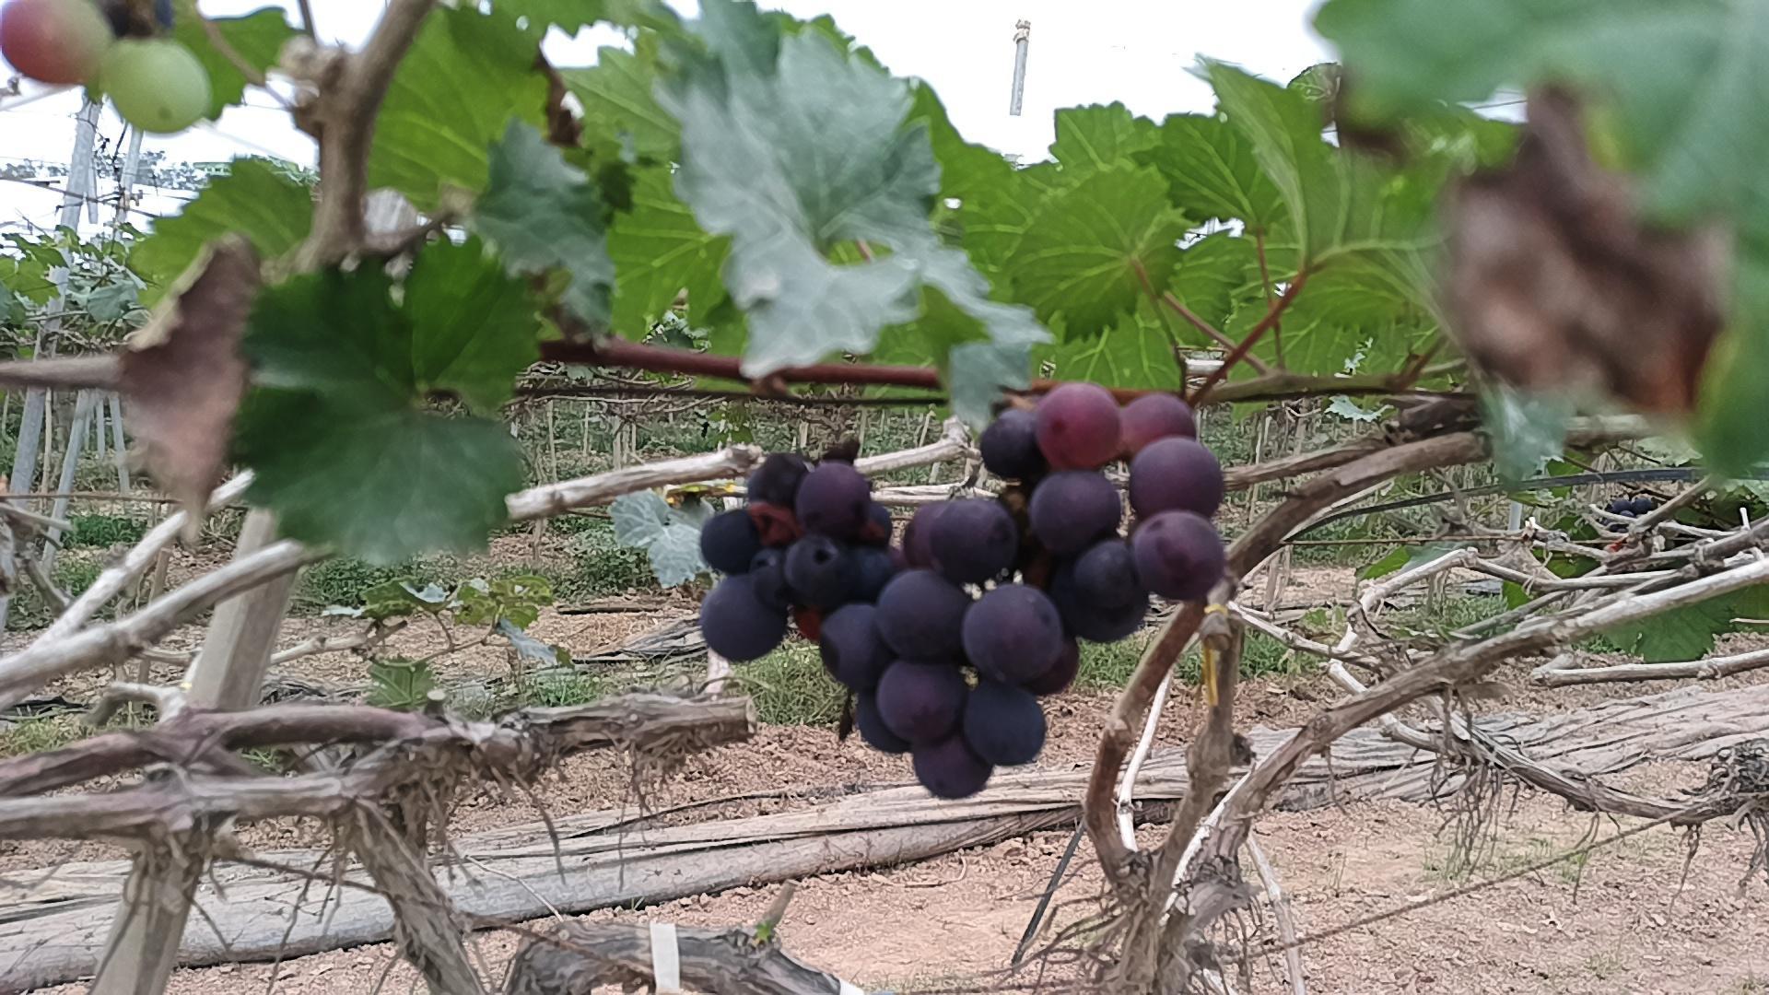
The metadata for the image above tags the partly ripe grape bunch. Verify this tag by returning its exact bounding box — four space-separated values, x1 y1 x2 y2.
0 0 226 133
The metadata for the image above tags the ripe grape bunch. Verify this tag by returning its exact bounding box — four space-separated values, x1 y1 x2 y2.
701 383 1224 798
